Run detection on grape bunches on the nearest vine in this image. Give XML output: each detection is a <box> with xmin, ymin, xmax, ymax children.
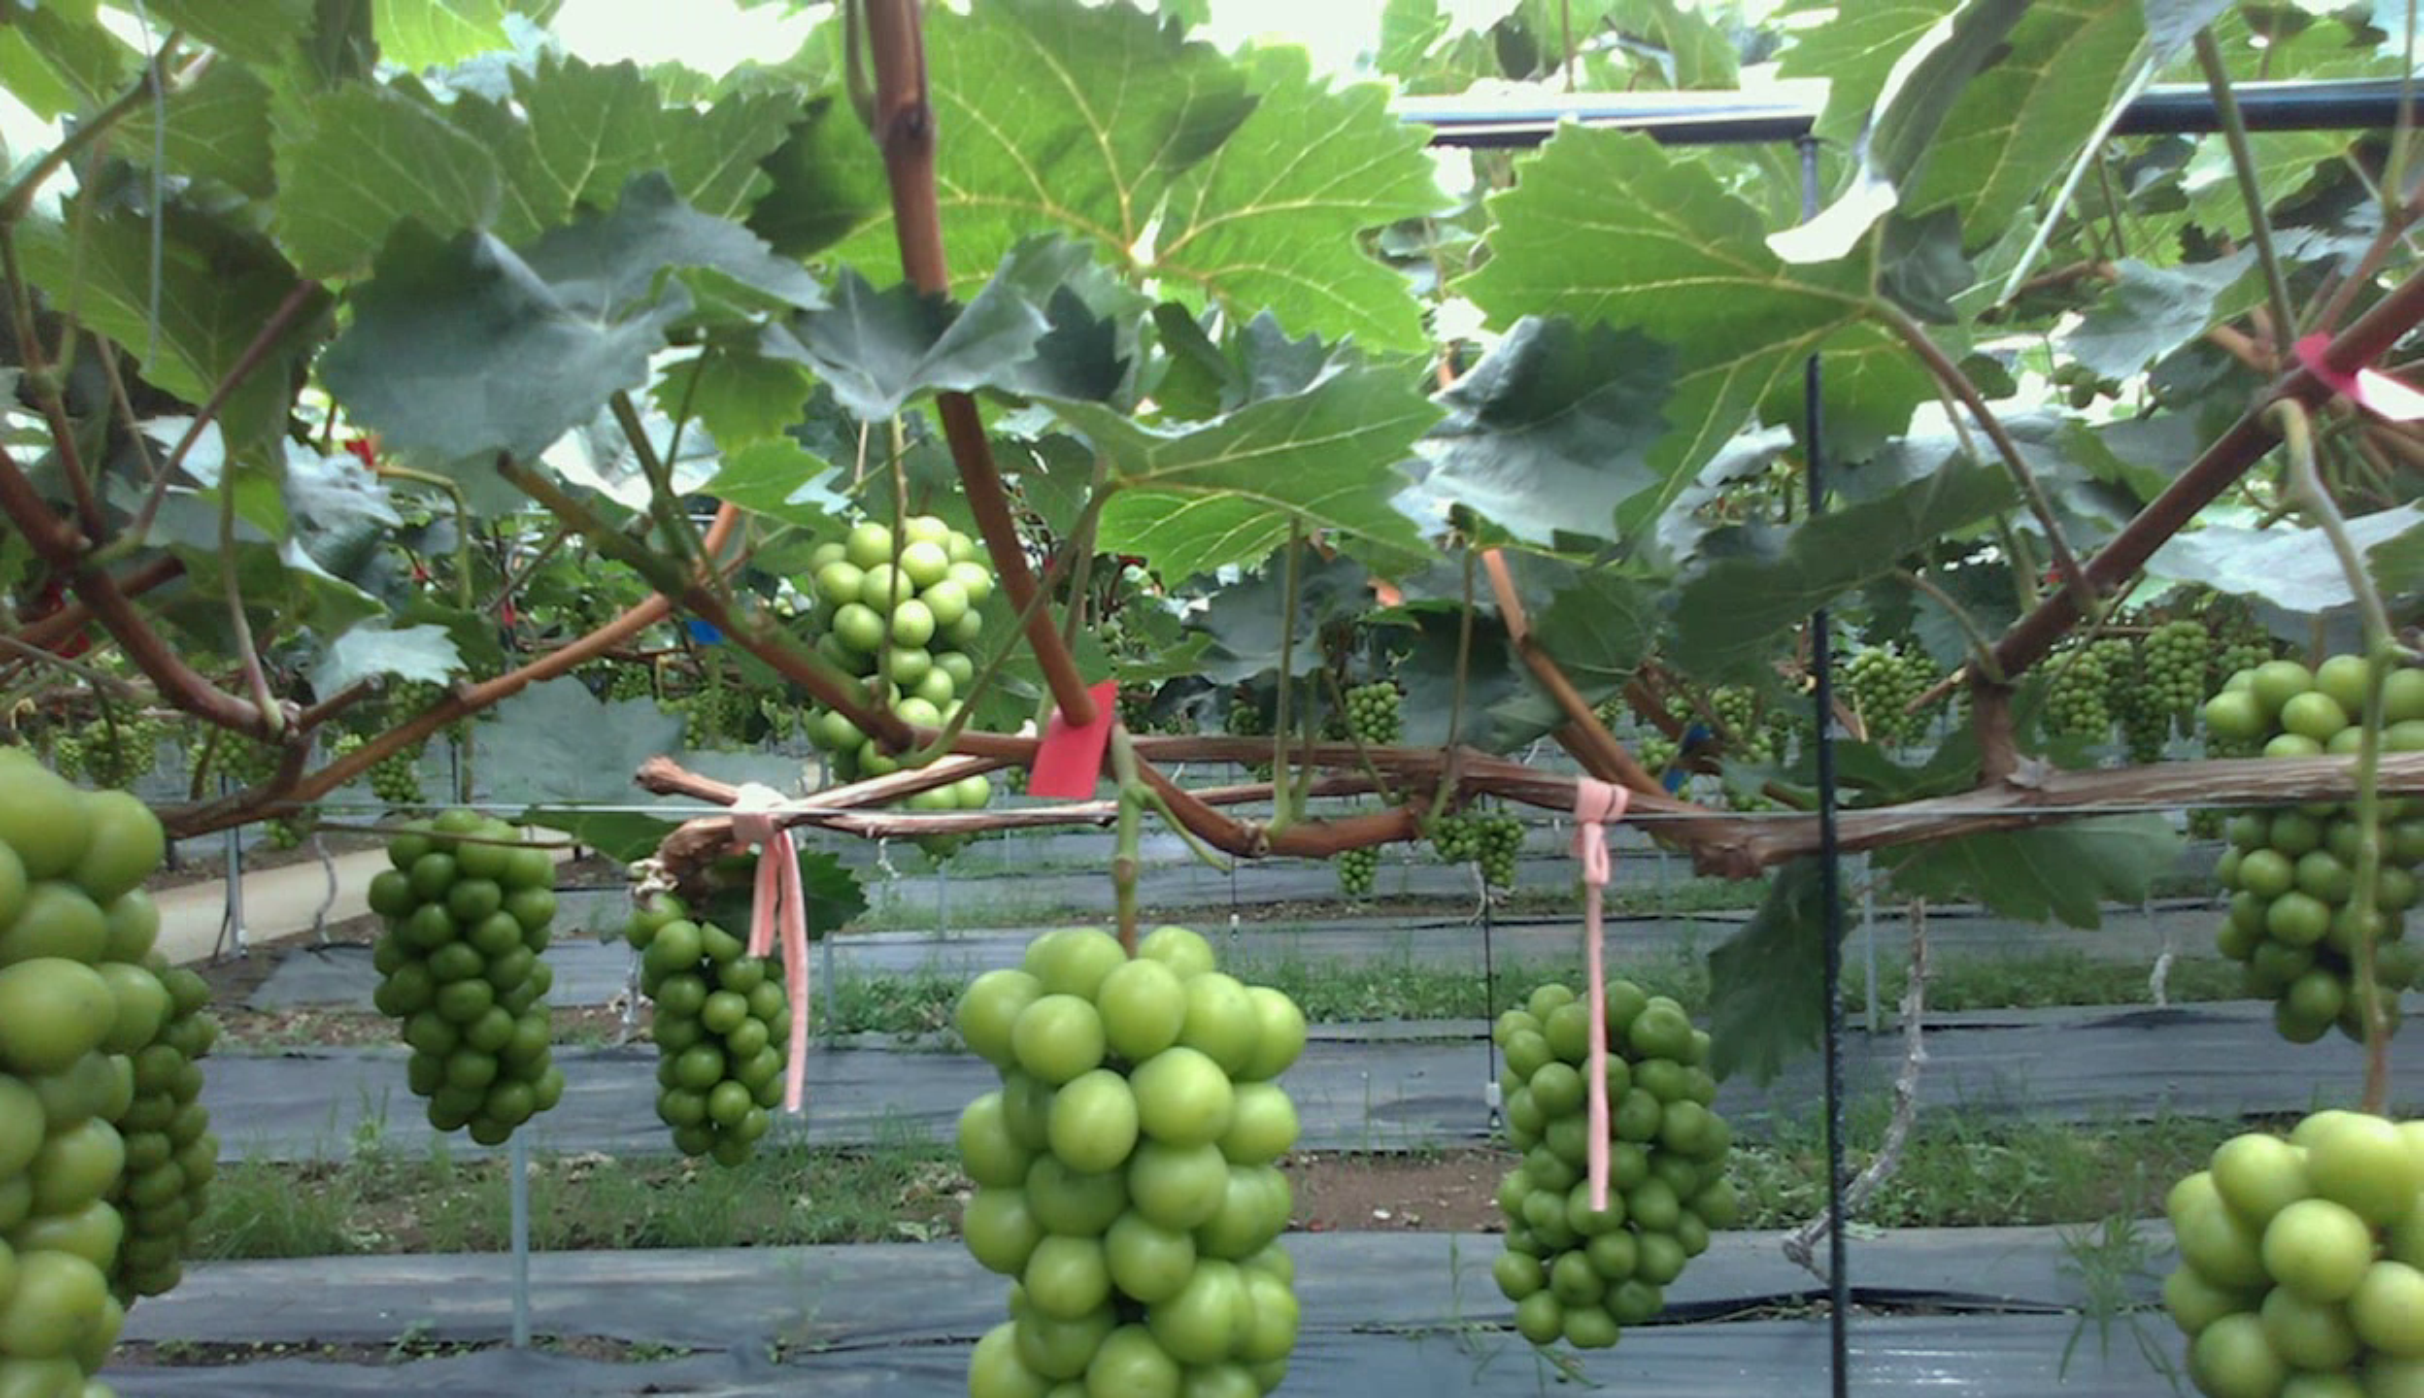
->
<box><xmin>2156</xmin><ymin>1109</ymin><xmax>2422</xmax><ymax>1396</ymax></box>
<box><xmin>954</xmin><ymin>924</ymin><xmax>1307</xmax><ymax>1396</ymax></box>
<box><xmin>1496</xmin><ymin>981</ymin><xmax>1738</xmax><ymax>1349</ymax></box>
<box><xmin>2</xmin><ymin>744</ymin><xmax>167</xmax><ymax>1396</ymax></box>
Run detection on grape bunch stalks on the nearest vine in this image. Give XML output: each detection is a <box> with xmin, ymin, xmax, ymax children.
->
<box><xmin>1109</xmin><ymin>720</ymin><xmax>1146</xmax><ymax>959</ymax></box>
<box><xmin>2265</xmin><ymin>398</ymin><xmax>2391</xmax><ymax>1118</ymax></box>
